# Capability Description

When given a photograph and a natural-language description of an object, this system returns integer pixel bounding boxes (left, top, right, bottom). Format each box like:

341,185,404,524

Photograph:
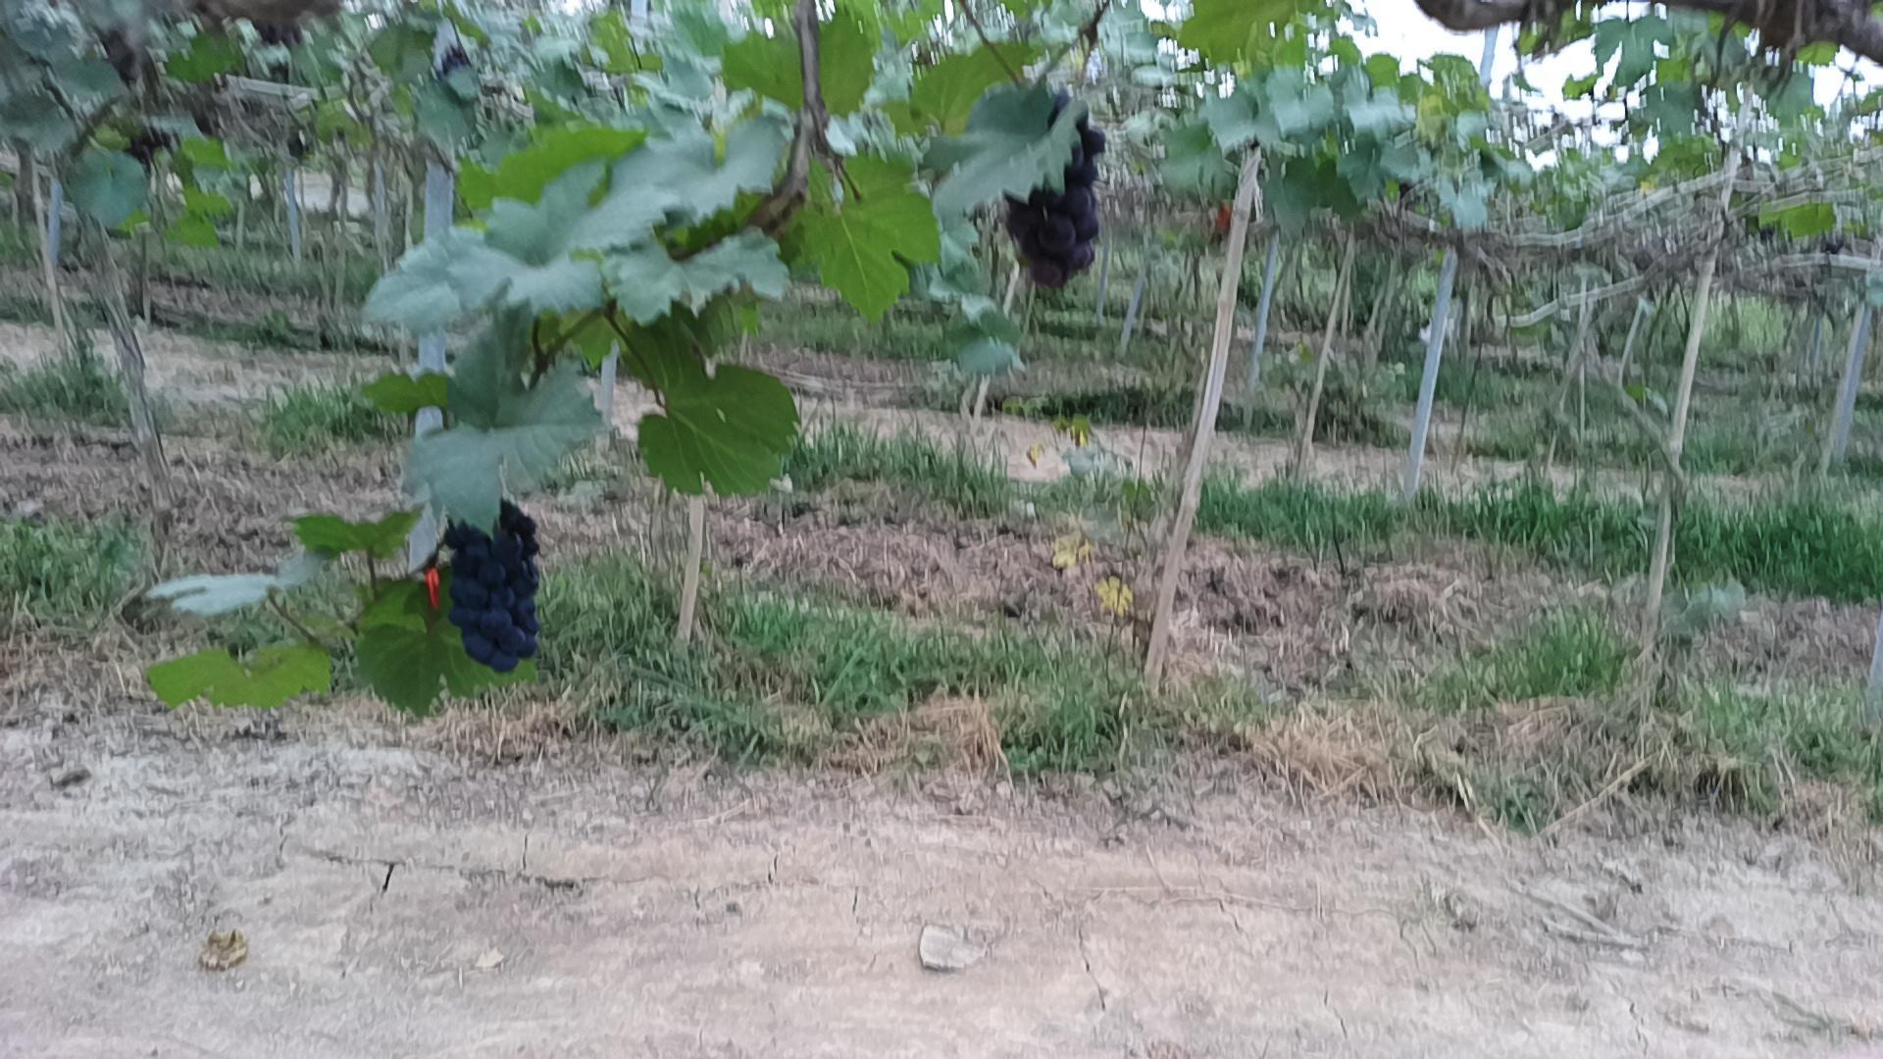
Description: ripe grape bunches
1004,113,1105,287
442,499,539,672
